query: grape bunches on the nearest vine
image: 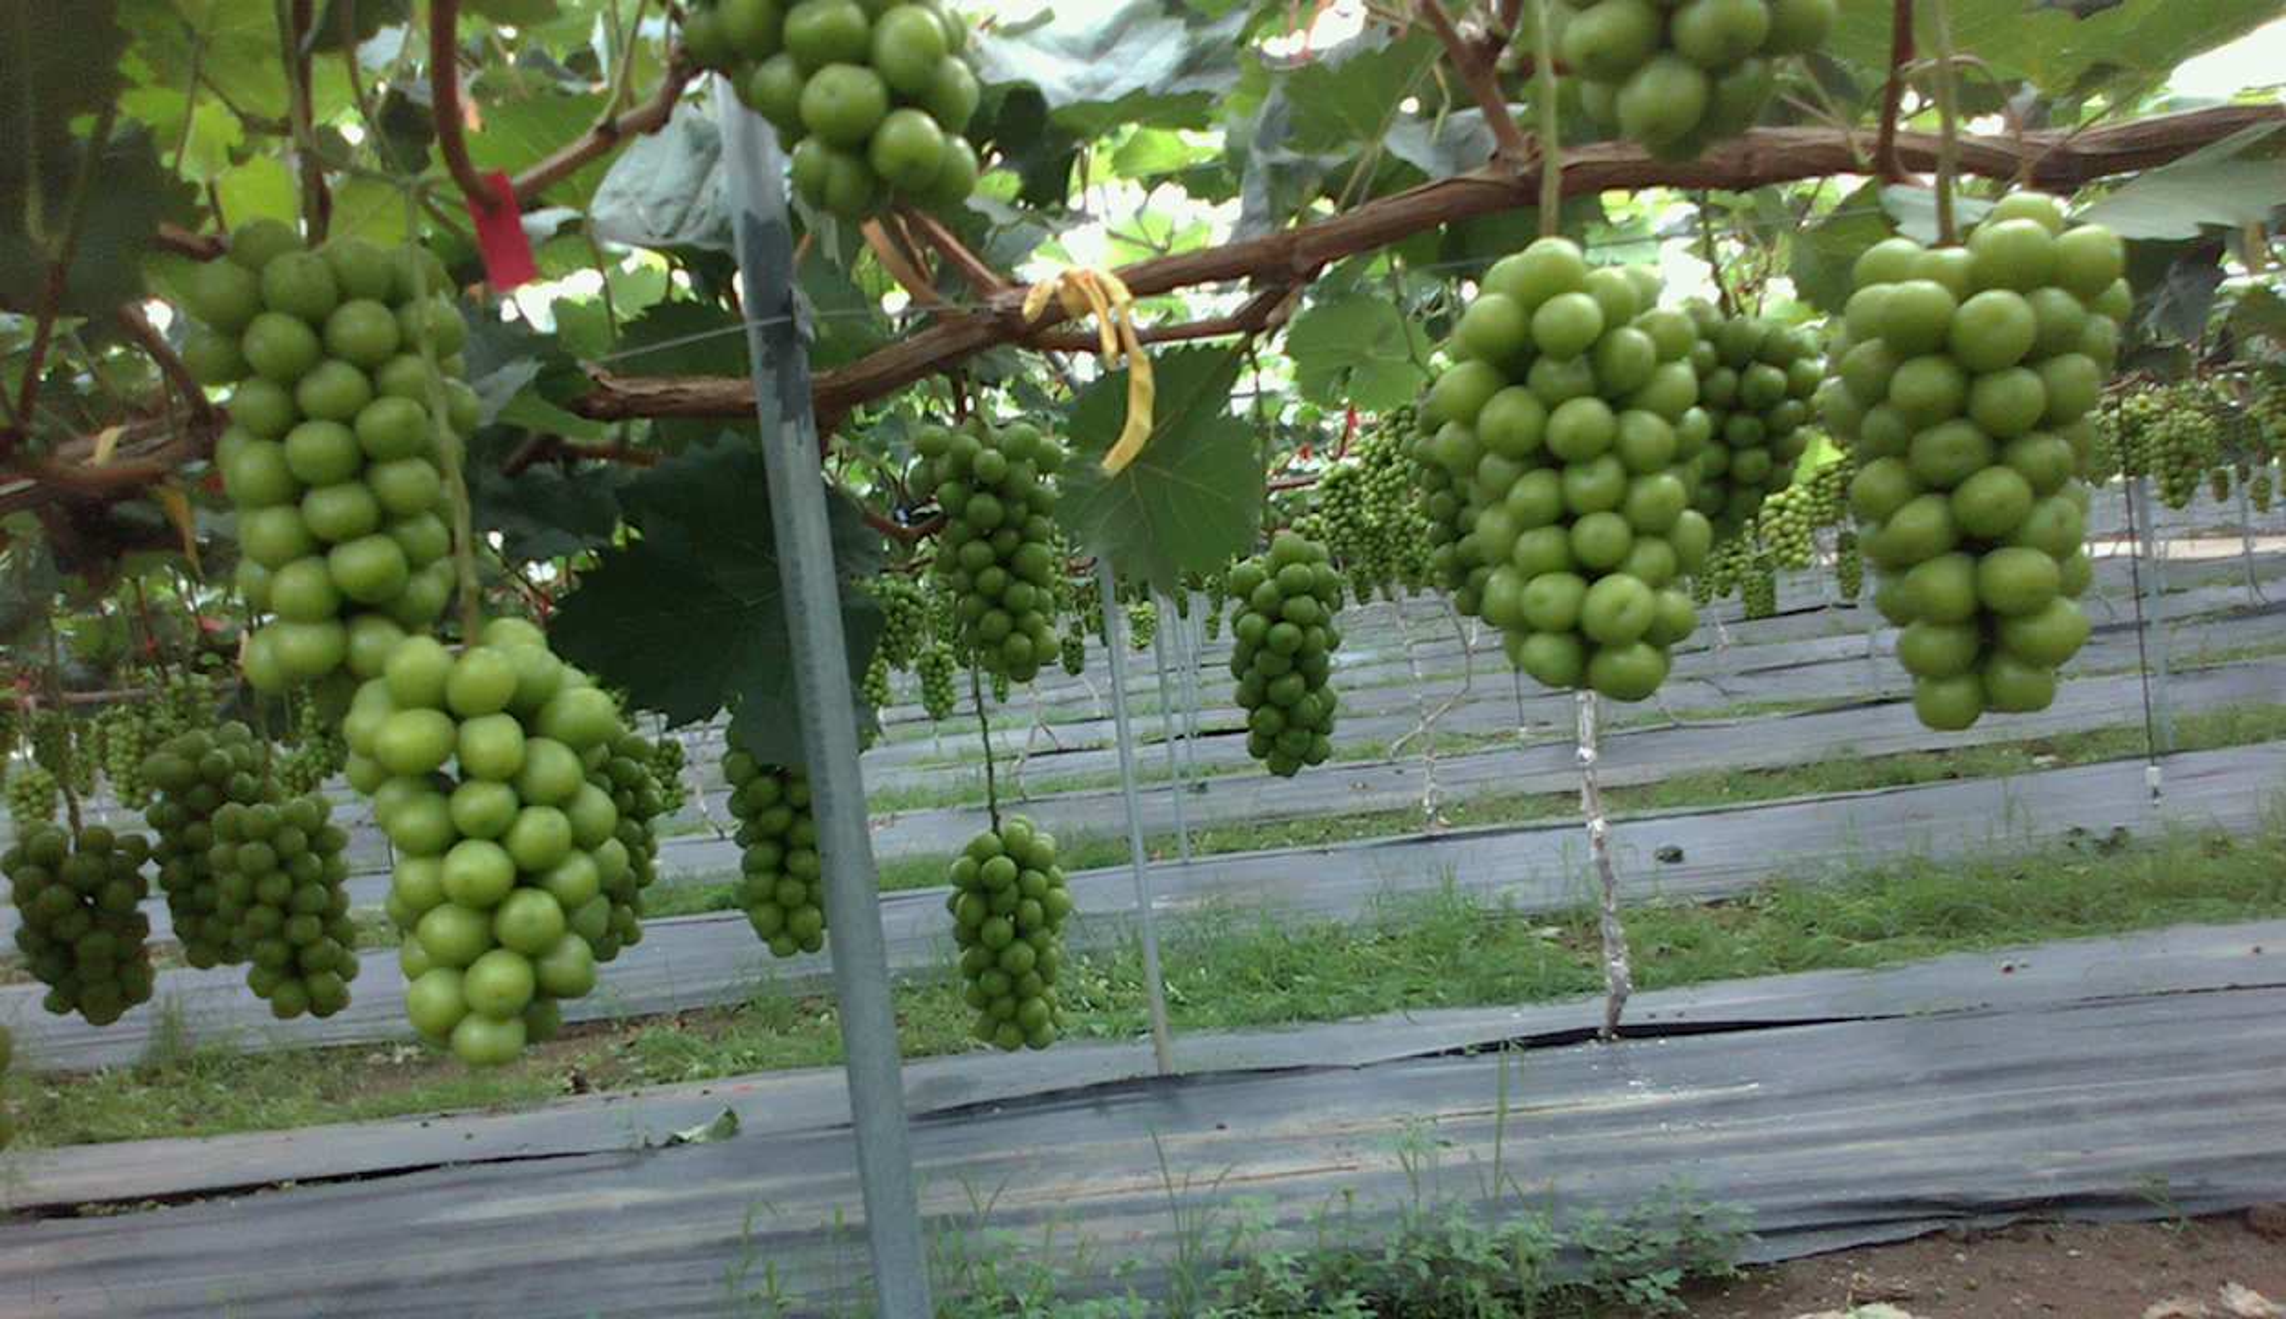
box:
[1432,236,1713,700]
[683,0,978,218]
[178,214,454,709]
[1821,192,2132,729]
[343,619,628,1072]
[1564,2,1824,161]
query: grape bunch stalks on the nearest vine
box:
[1528,0,1559,234]
[273,0,321,244]
[408,167,482,647]
[1934,2,1954,245]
